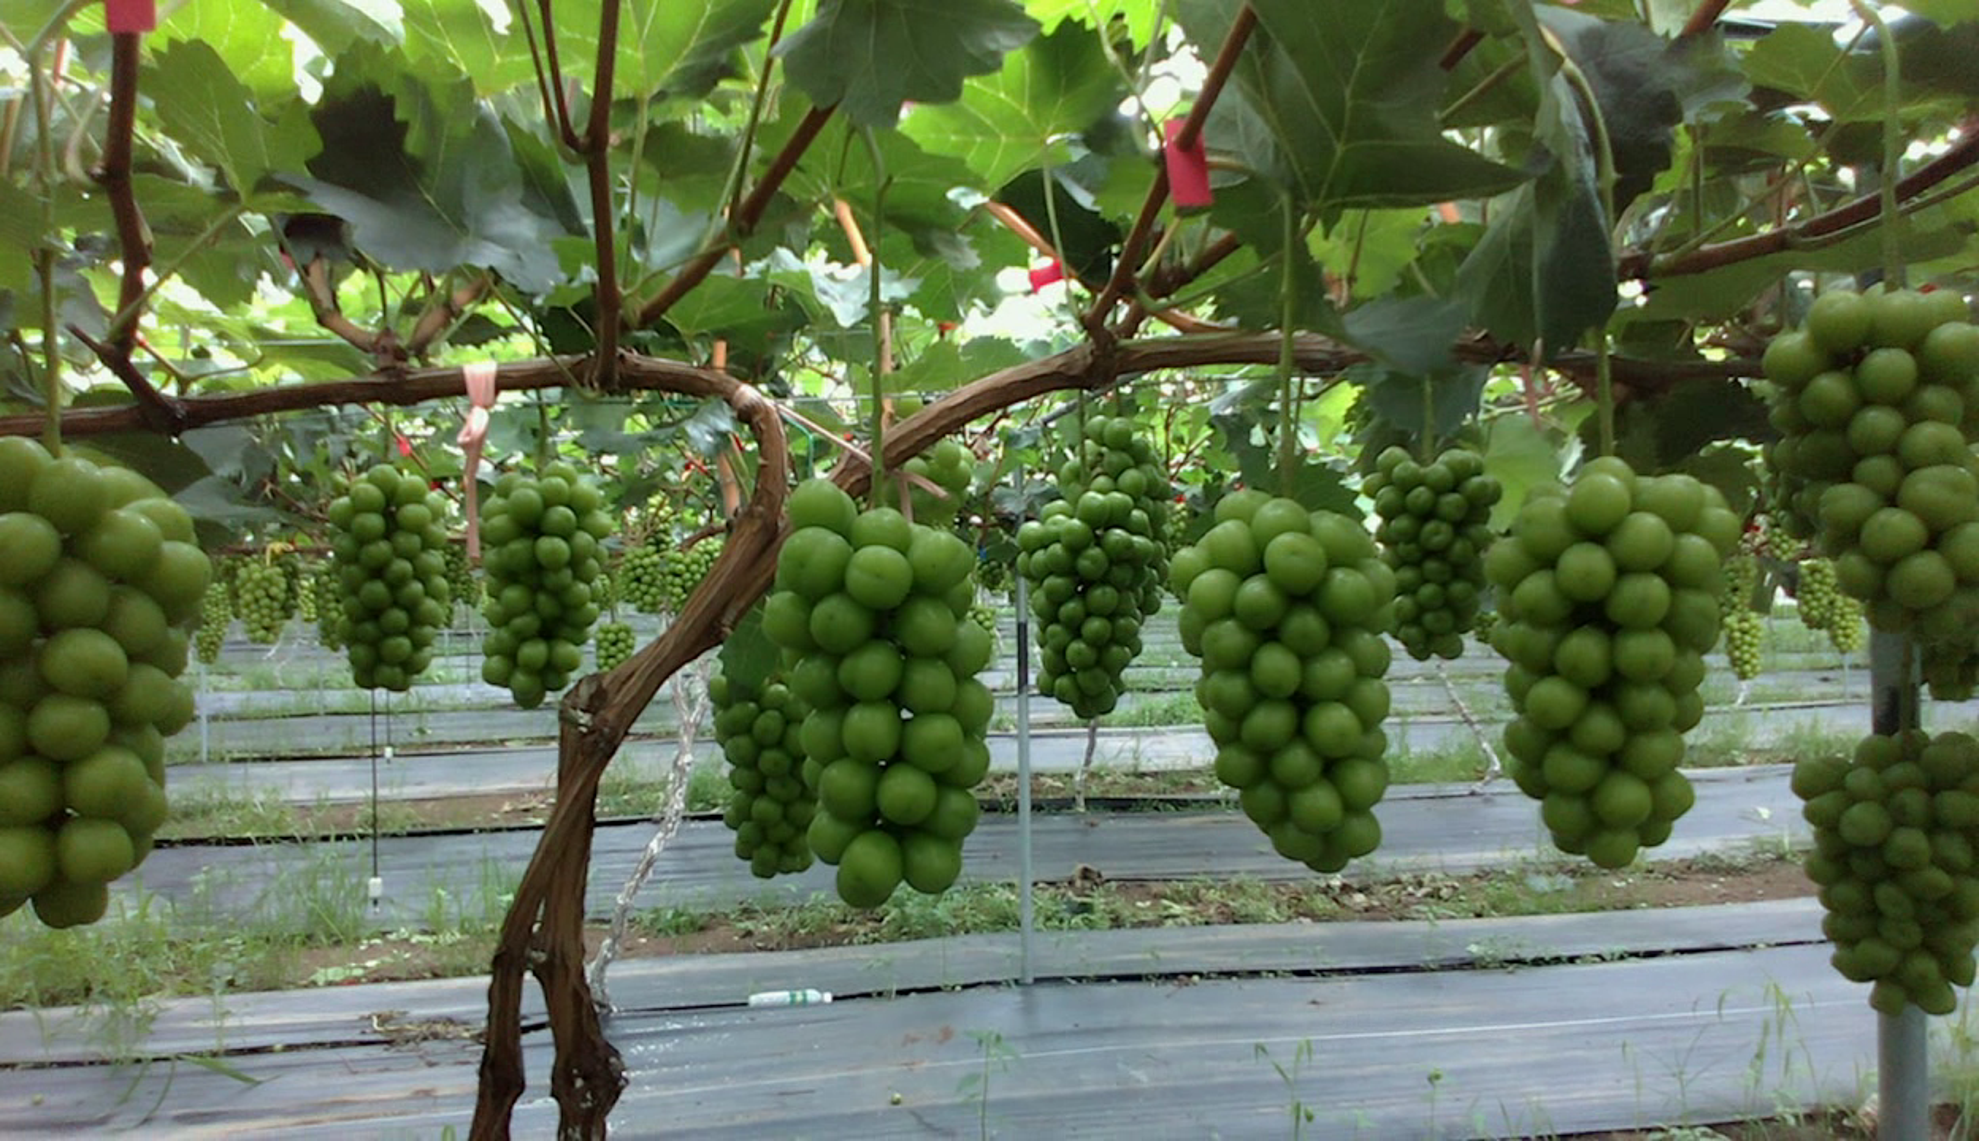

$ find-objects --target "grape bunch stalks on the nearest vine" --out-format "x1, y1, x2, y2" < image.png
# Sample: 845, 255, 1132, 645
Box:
1597, 333, 1617, 456
1207, 155, 1299, 498
861, 124, 896, 509
1851, 5, 1906, 293
36, 247, 62, 456
1897, 632, 1917, 764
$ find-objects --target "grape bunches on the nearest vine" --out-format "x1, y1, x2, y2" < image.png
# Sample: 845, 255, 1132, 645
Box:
1762, 282, 1977, 651
1484, 456, 1743, 868
760, 477, 994, 910
1167, 490, 1397, 875
1789, 729, 1977, 1016
2, 436, 214, 932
